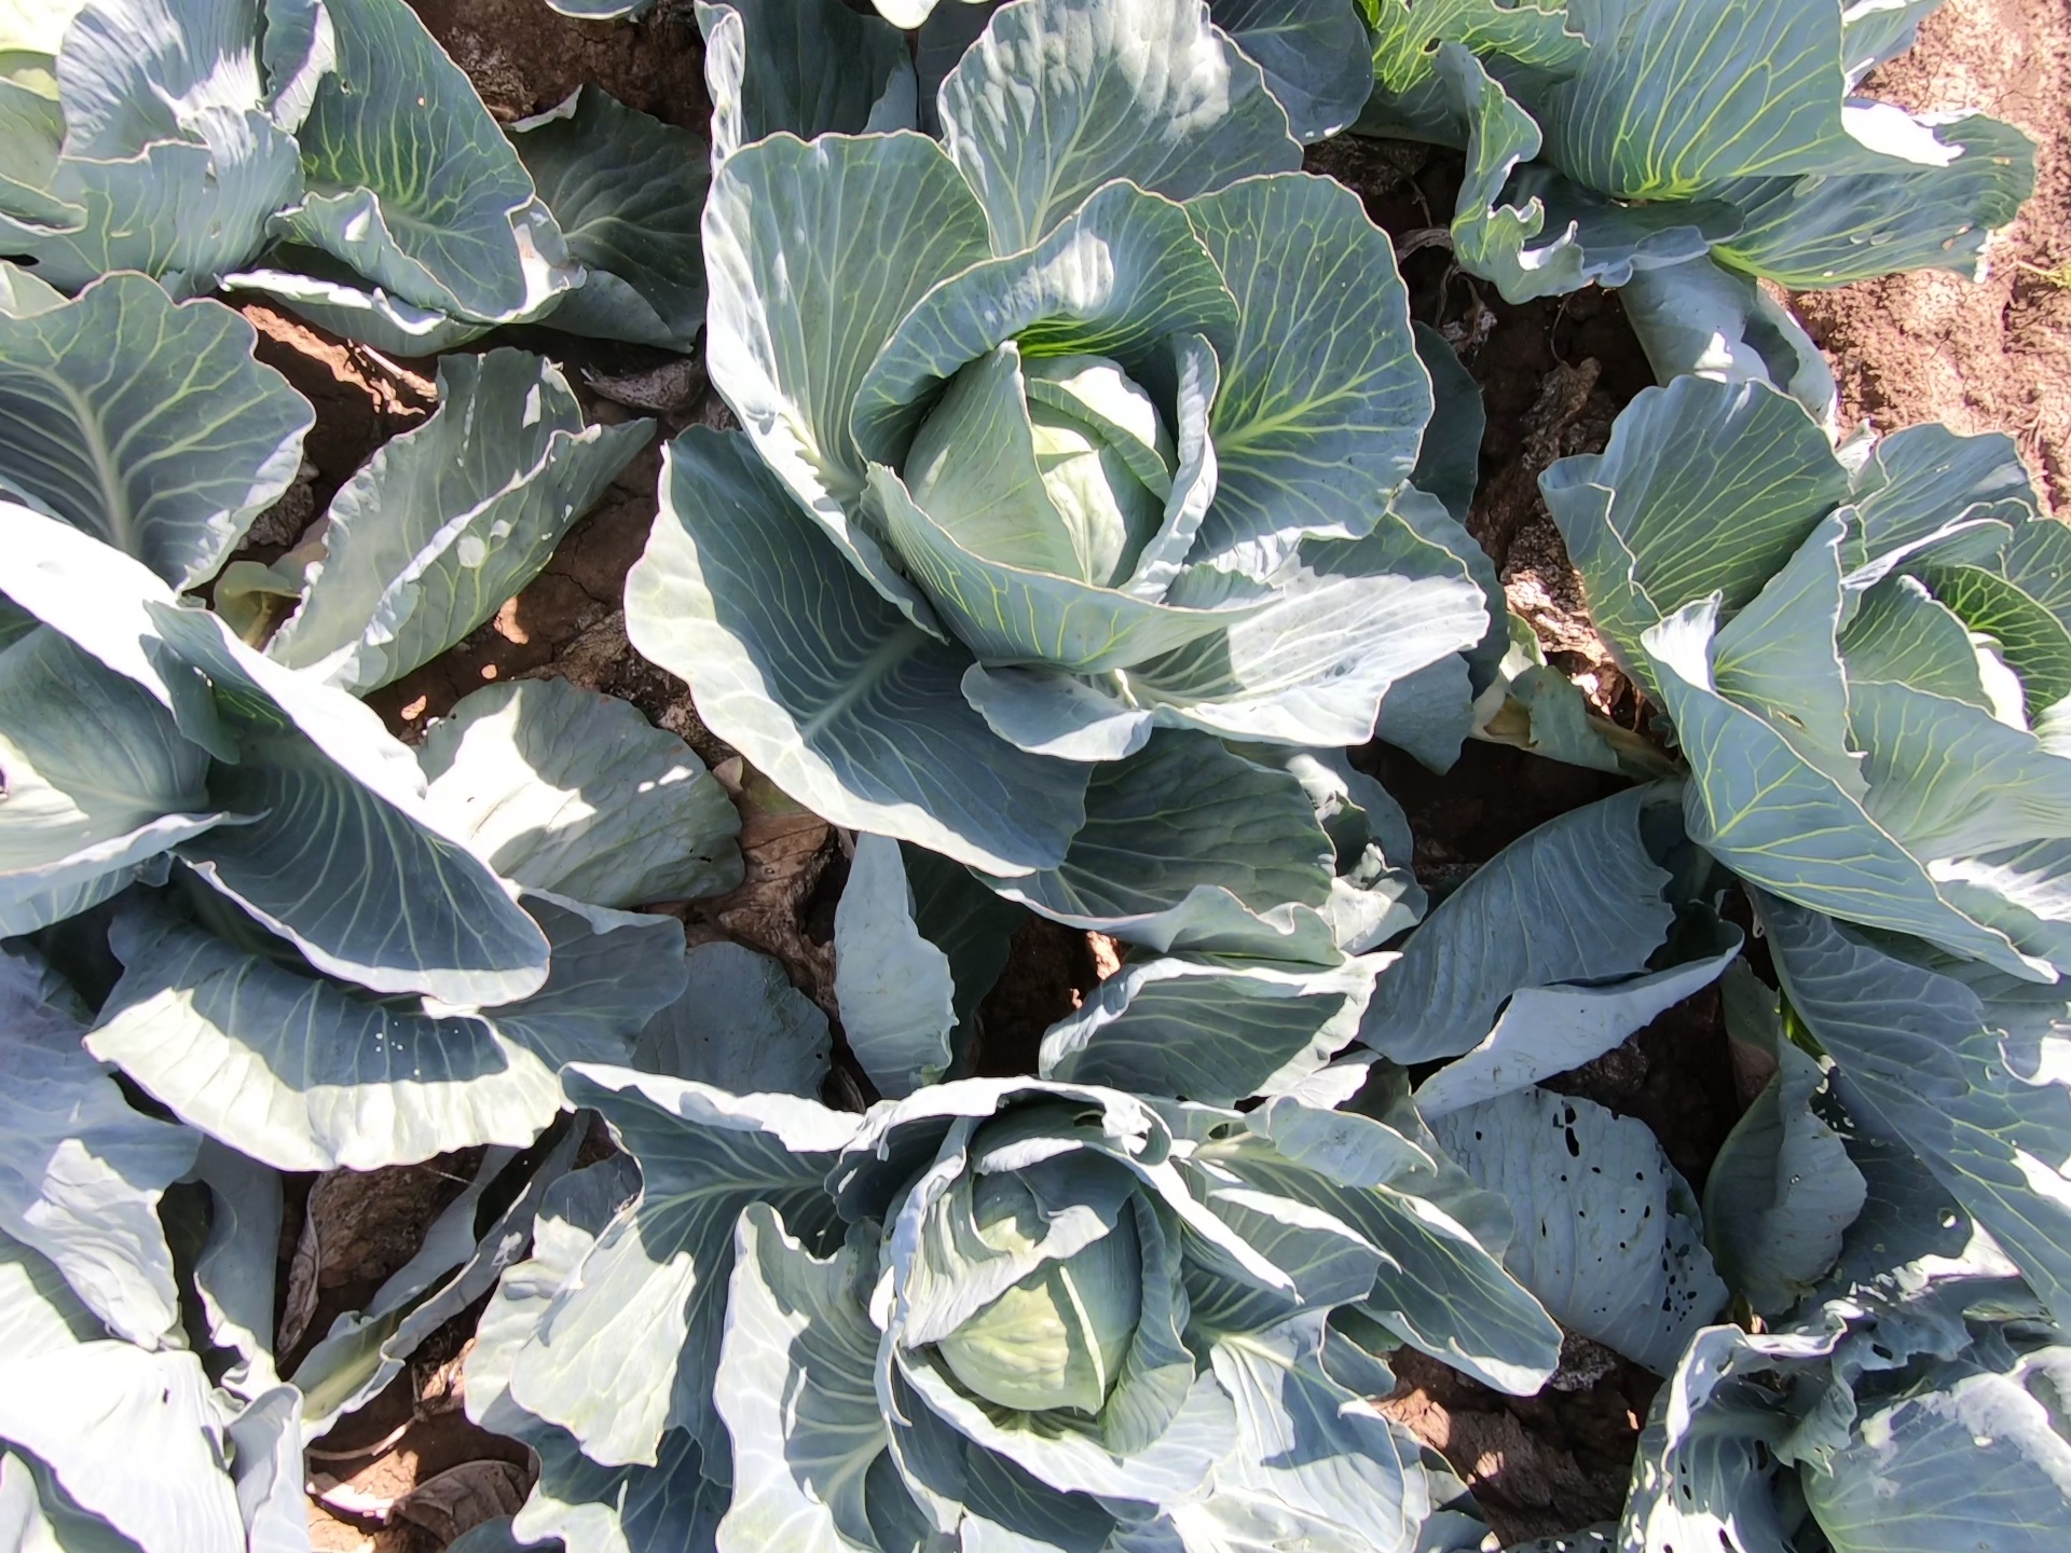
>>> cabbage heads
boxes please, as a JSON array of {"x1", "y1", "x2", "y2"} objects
[
  {"x1": 925, "y1": 355, "x2": 1174, "y2": 651},
  {"x1": 922, "y1": 1145, "x2": 1160, "y2": 1403},
  {"x1": 1832, "y1": 626, "x2": 2025, "y2": 810},
  {"x1": 0, "y1": 2, "x2": 262, "y2": 219},
  {"x1": 4, "y1": 591, "x2": 189, "y2": 875}
]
